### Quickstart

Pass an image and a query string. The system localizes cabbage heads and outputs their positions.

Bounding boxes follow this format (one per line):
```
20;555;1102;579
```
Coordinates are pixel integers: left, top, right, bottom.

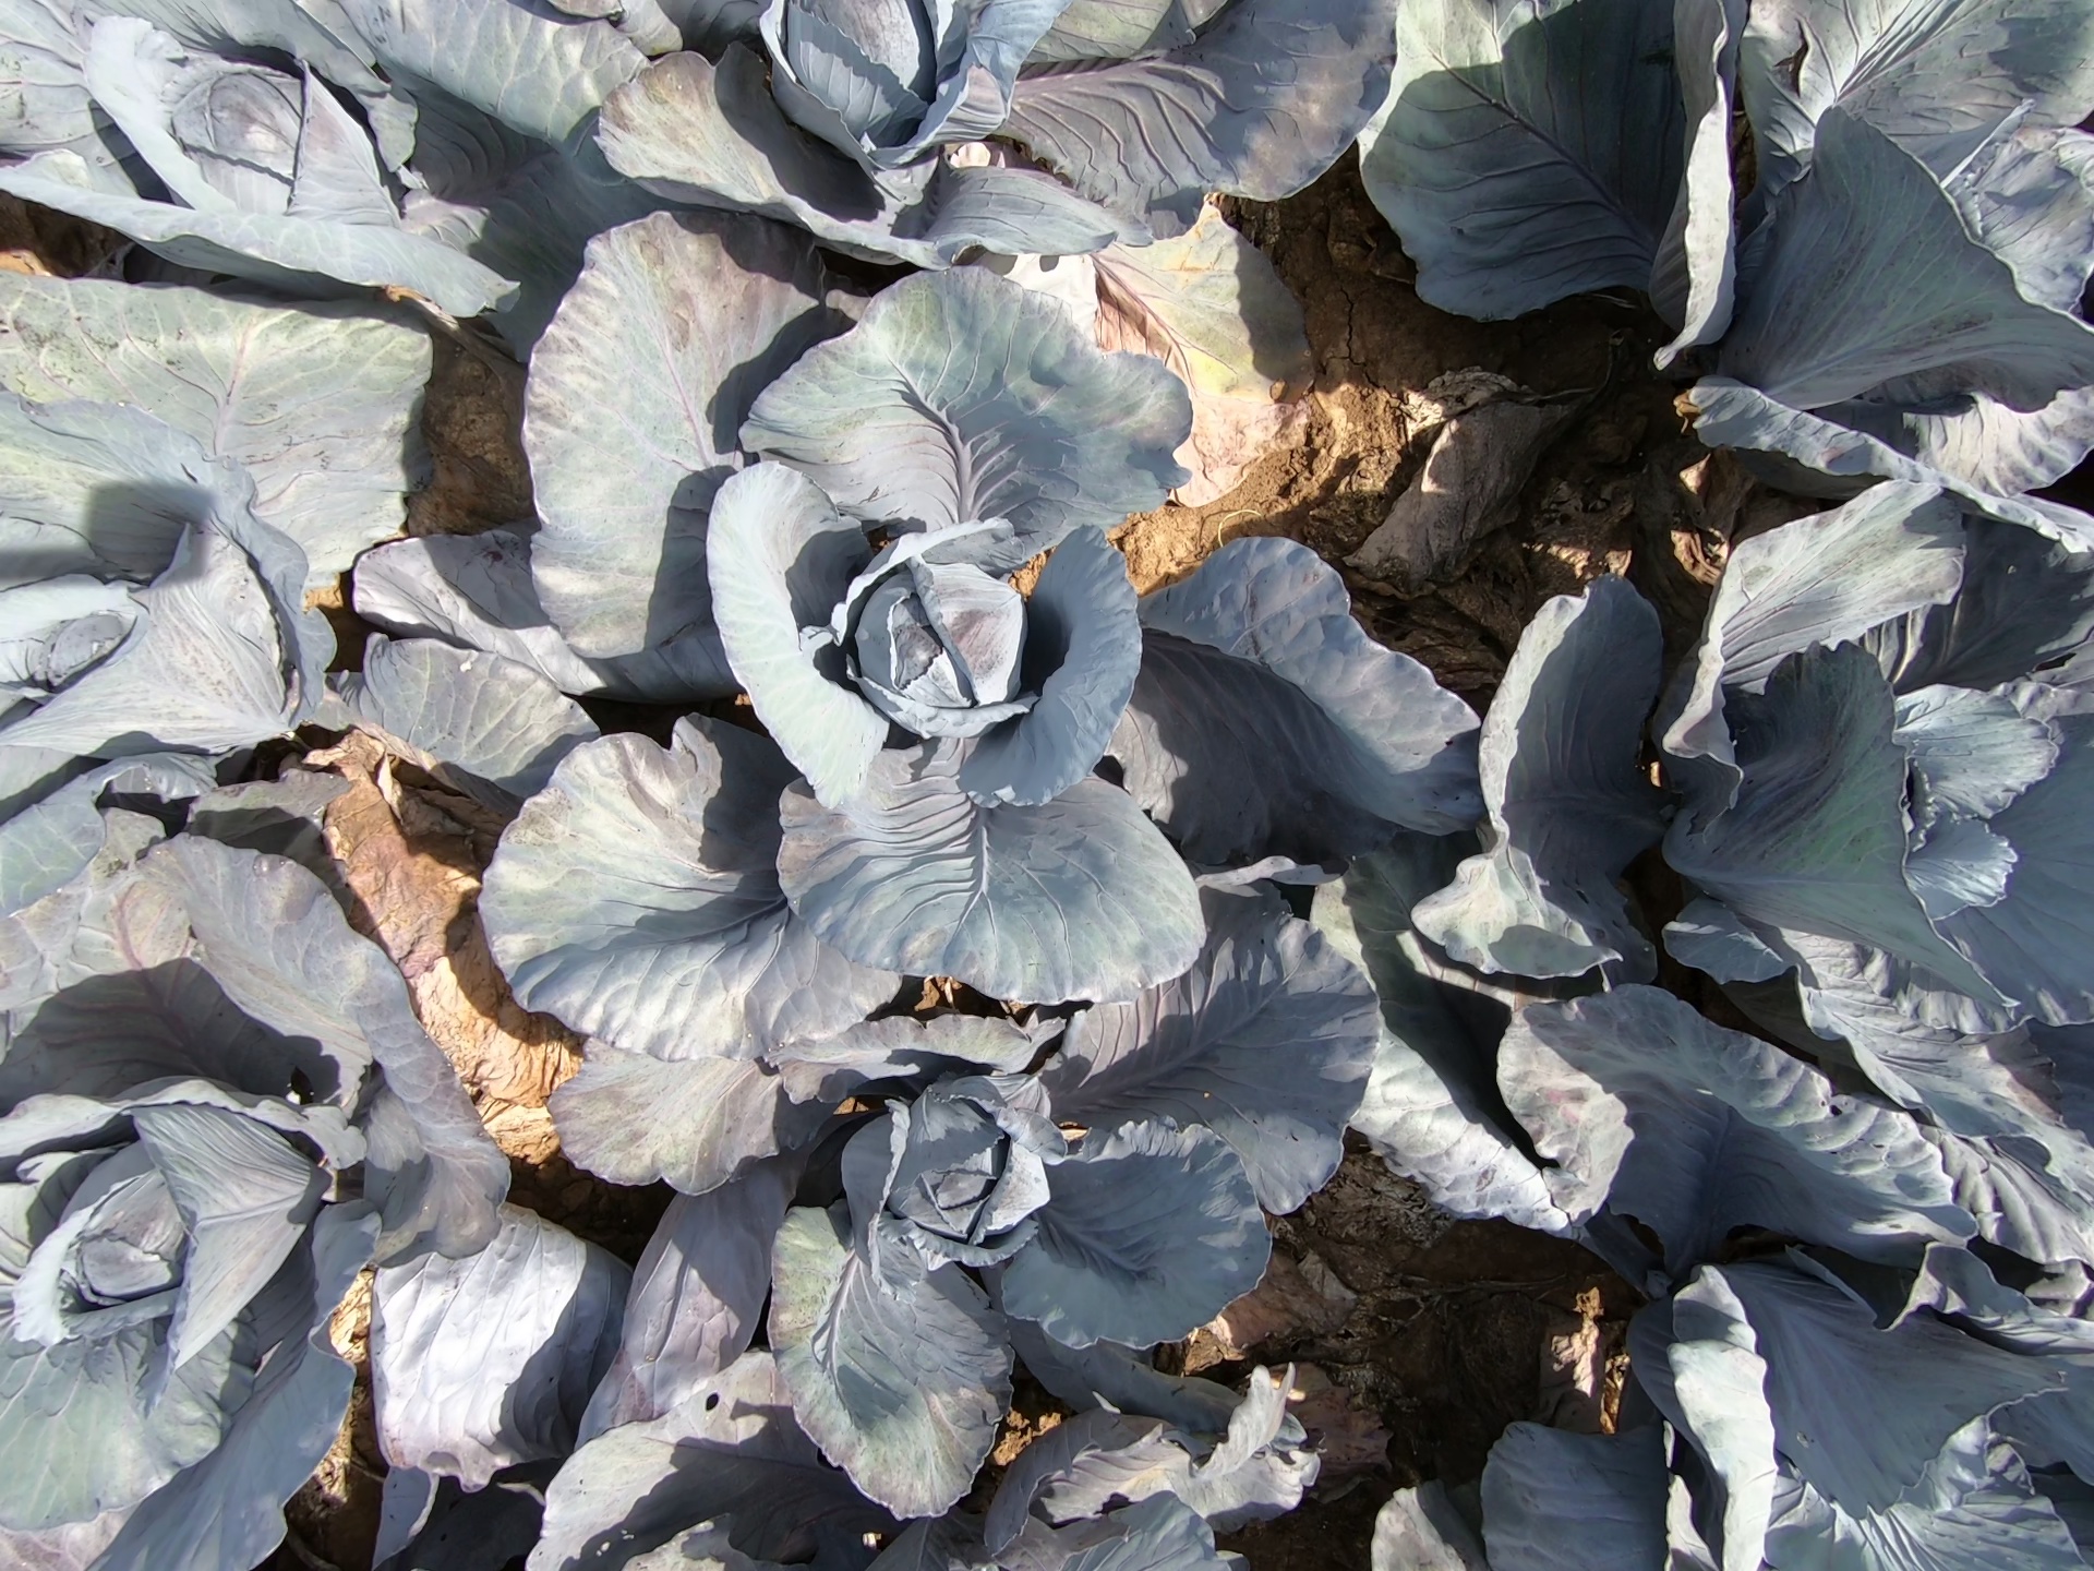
854;561;1030;737
67;1143;284;1305
790;0;960;130
882;1086;1045;1243
160;62;371;253
1735;760;1915;913
37;608;163;709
